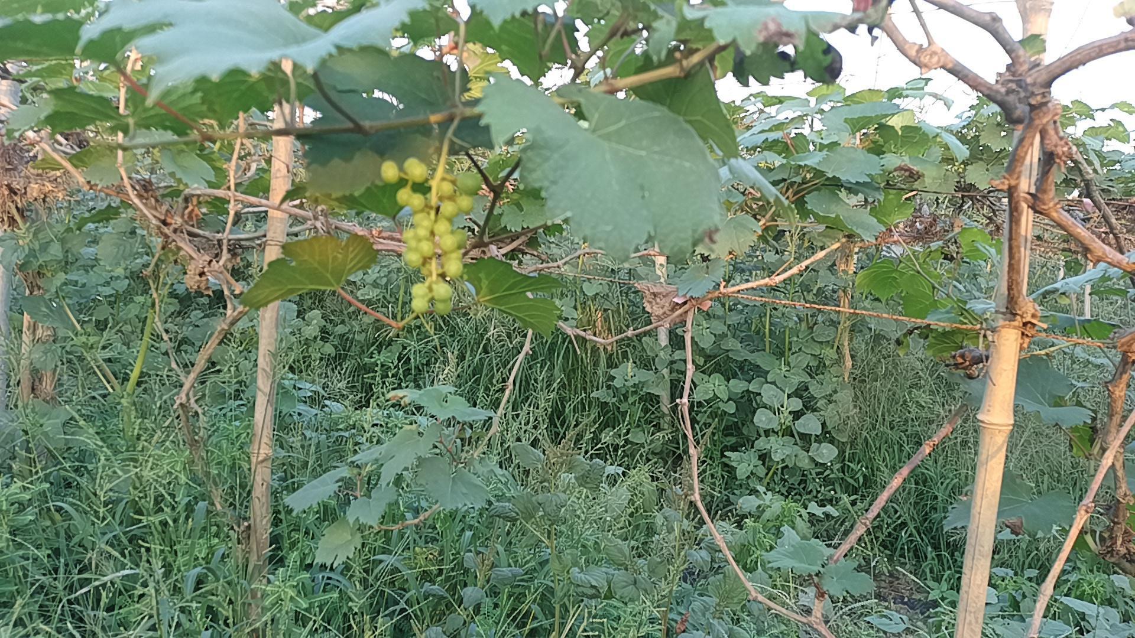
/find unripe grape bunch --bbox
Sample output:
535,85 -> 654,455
381,158 -> 481,315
